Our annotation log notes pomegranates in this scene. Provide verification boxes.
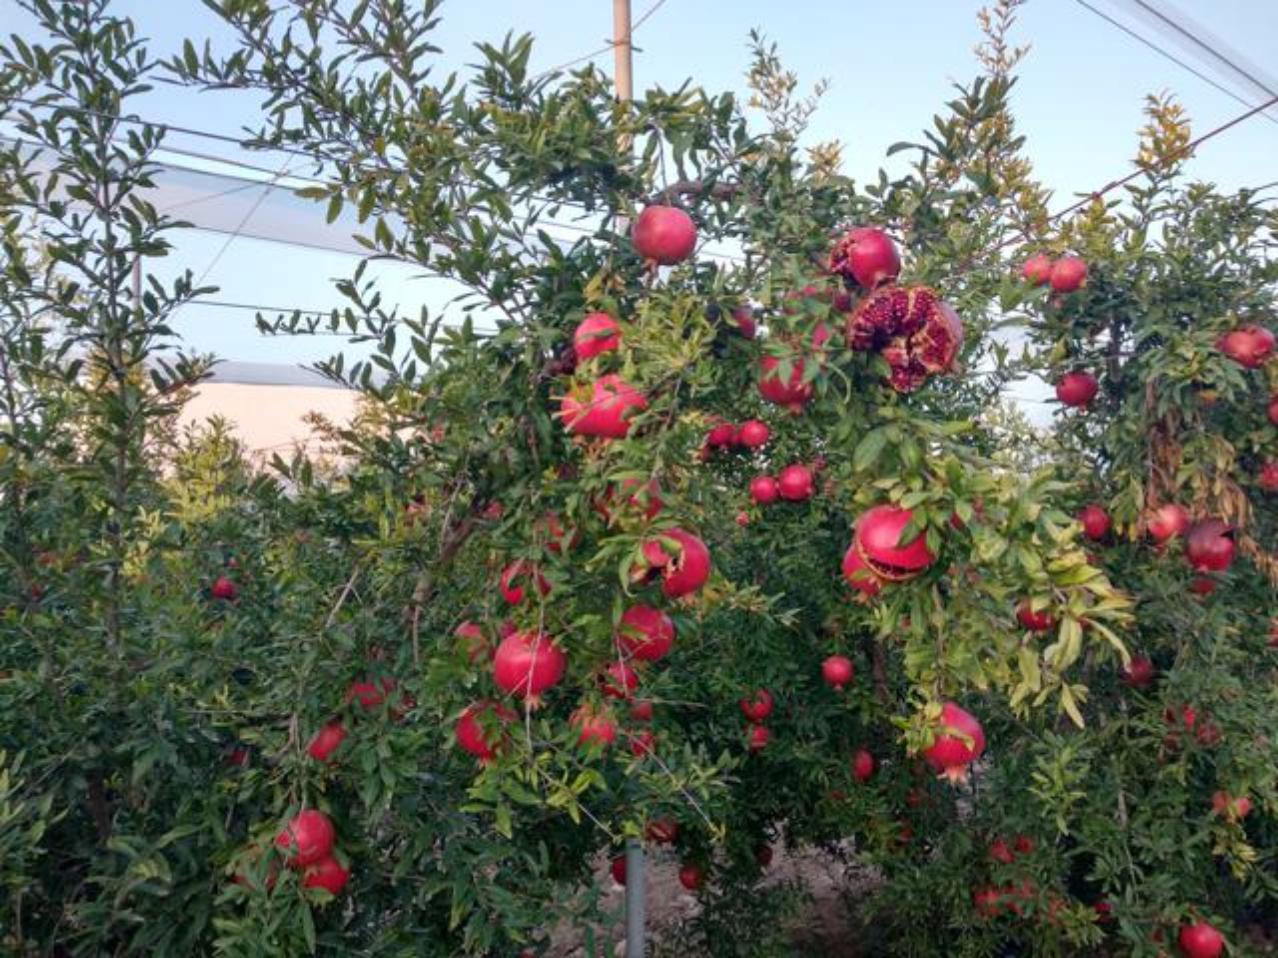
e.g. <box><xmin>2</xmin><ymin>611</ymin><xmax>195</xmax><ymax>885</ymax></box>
<box><xmin>545</xmin><ymin>511</ymin><xmax>579</xmax><ymax>553</ymax></box>
<box><xmin>1266</xmin><ymin>395</ymin><xmax>1278</xmax><ymax>425</ymax></box>
<box><xmin>986</xmin><ymin>836</ymin><xmax>1034</xmax><ymax>866</ymax></box>
<box><xmin>759</xmin><ymin>355</ymin><xmax>815</xmax><ymax>417</ymax></box>
<box><xmin>1186</xmin><ymin>519</ymin><xmax>1236</xmax><ymax>577</ymax></box>
<box><xmin>349</xmin><ymin>685</ymin><xmax>383</xmax><ymax>705</ymax></box>
<box><xmin>493</xmin><ymin>619</ymin><xmax>565</xmax><ymax>711</ymax></box>
<box><xmin>972</xmin><ymin>892</ymin><xmax>1000</xmax><ymax>916</ymax></box>
<box><xmin>1016</xmin><ymin>605</ymin><xmax>1056</xmax><ymax>631</ymax></box>
<box><xmin>274</xmin><ymin>808</ymin><xmax>335</xmax><ymax>878</ymax></box>
<box><xmin>849</xmin><ymin>281</ymin><xmax>964</xmax><ymax>395</ymax></box>
<box><xmin>855</xmin><ymin>748</ymin><xmax>877</xmax><ymax>782</ymax></box>
<box><xmin>1144</xmin><ymin>503</ymin><xmax>1190</xmax><ymax>543</ymax></box>
<box><xmin>737</xmin><ymin>417</ymin><xmax>771</xmax><ymax>451</ymax></box>
<box><xmin>733</xmin><ymin>305</ymin><xmax>755</xmax><ymax>339</ymax></box>
<box><xmin>605</xmin><ymin>663</ymin><xmax>637</xmax><ymax>701</ymax></box>
<box><xmin>629</xmin><ymin>204</ymin><xmax>697</xmax><ymax>275</ymax></box>
<box><xmin>1212</xmin><ymin>790</ymin><xmax>1252</xmax><ymax>818</ymax></box>
<box><xmin>645</xmin><ymin>820</ymin><xmax>679</xmax><ymax>842</ymax></box>
<box><xmin>747</xmin><ymin>475</ymin><xmax>783</xmax><ymax>507</ymax></box>
<box><xmin>821</xmin><ymin>655</ymin><xmax>853</xmax><ymax>691</ymax></box>
<box><xmin>751</xmin><ymin>724</ymin><xmax>769</xmax><ymax>750</ymax></box>
<box><xmin>1258</xmin><ymin>463</ymin><xmax>1278</xmax><ymax>495</ymax></box>
<box><xmin>613</xmin><ymin>854</ymin><xmax>627</xmax><ymax>888</ymax></box>
<box><xmin>212</xmin><ymin>577</ymin><xmax>234</xmax><ymax>599</ymax></box>
<box><xmin>306</xmin><ymin>722</ymin><xmax>347</xmax><ymax>760</ymax></box>
<box><xmin>825</xmin><ymin>228</ymin><xmax>901</xmax><ymax>289</ymax></box>
<box><xmin>1054</xmin><ymin>371</ymin><xmax>1098</xmax><ymax>411</ymax></box>
<box><xmin>925</xmin><ymin>703</ymin><xmax>986</xmax><ymax>790</ymax></box>
<box><xmin>1050</xmin><ymin>255</ymin><xmax>1088</xmax><ymax>293</ymax></box>
<box><xmin>741</xmin><ymin>691</ymin><xmax>773</xmax><ymax>724</ymax></box>
<box><xmin>559</xmin><ymin>375</ymin><xmax>649</xmax><ymax>437</ymax></box>
<box><xmin>621</xmin><ymin>479</ymin><xmax>665</xmax><ymax>521</ymax></box>
<box><xmin>573</xmin><ymin>313</ymin><xmax>621</xmax><ymax>359</ymax></box>
<box><xmin>1118</xmin><ymin>657</ymin><xmax>1152</xmax><ymax>685</ymax></box>
<box><xmin>306</xmin><ymin>852</ymin><xmax>349</xmax><ymax>894</ymax></box>
<box><xmin>1074</xmin><ymin>503</ymin><xmax>1110</xmax><ymax>541</ymax></box>
<box><xmin>631</xmin><ymin>703</ymin><xmax>653</xmax><ymax>722</ymax></box>
<box><xmin>1178</xmin><ymin>922</ymin><xmax>1224</xmax><ymax>958</ymax></box>
<box><xmin>571</xmin><ymin>703</ymin><xmax>615</xmax><ymax>746</ymax></box>
<box><xmin>679</xmin><ymin>864</ymin><xmax>699</xmax><ymax>890</ymax></box>
<box><xmin>853</xmin><ymin>503</ymin><xmax>935</xmax><ymax>593</ymax></box>
<box><xmin>455</xmin><ymin>619</ymin><xmax>517</xmax><ymax>663</ymax></box>
<box><xmin>841</xmin><ymin>541</ymin><xmax>879</xmax><ymax>611</ymax></box>
<box><xmin>619</xmin><ymin>601</ymin><xmax>675</xmax><ymax>661</ymax></box>
<box><xmin>1184</xmin><ymin>707</ymin><xmax>1198</xmax><ymax>734</ymax></box>
<box><xmin>455</xmin><ymin>701</ymin><xmax>521</xmax><ymax>768</ymax></box>
<box><xmin>1022</xmin><ymin>255</ymin><xmax>1054</xmax><ymax>285</ymax></box>
<box><xmin>631</xmin><ymin>732</ymin><xmax>653</xmax><ymax>758</ymax></box>
<box><xmin>1216</xmin><ymin>321</ymin><xmax>1278</xmax><ymax>369</ymax></box>
<box><xmin>773</xmin><ymin>463</ymin><xmax>815</xmax><ymax>503</ymax></box>
<box><xmin>709</xmin><ymin>421</ymin><xmax>741</xmax><ymax>453</ymax></box>
<box><xmin>501</xmin><ymin>563</ymin><xmax>551</xmax><ymax>605</ymax></box>
<box><xmin>641</xmin><ymin>529</ymin><xmax>711</xmax><ymax>599</ymax></box>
